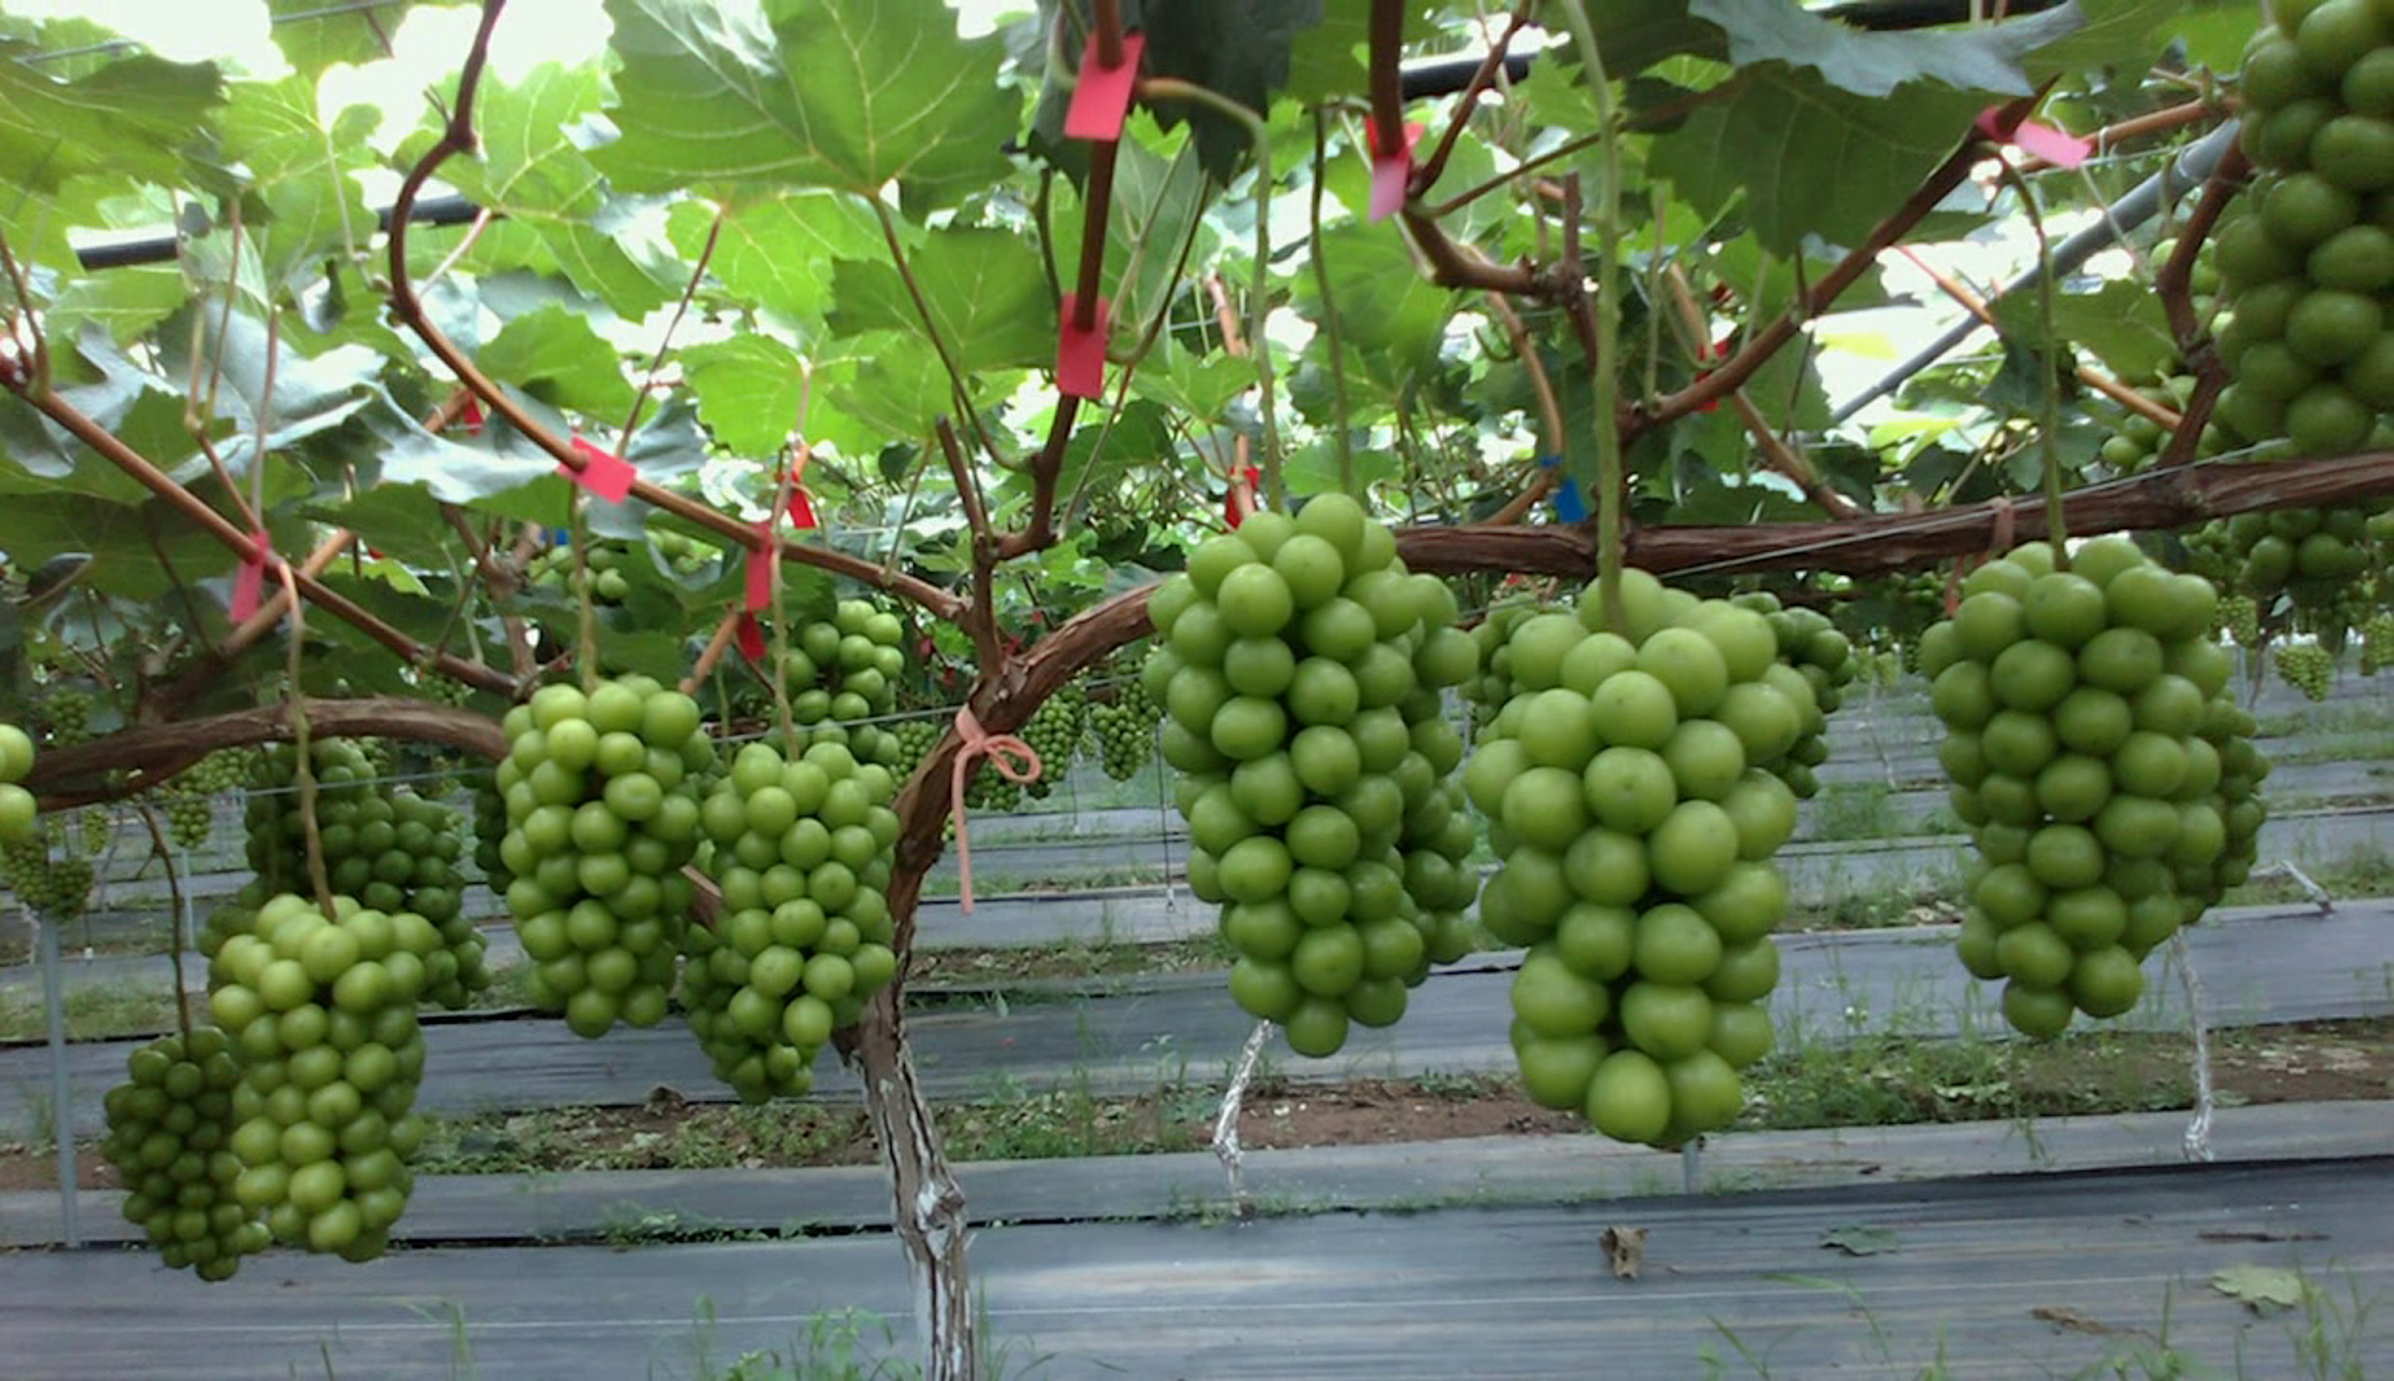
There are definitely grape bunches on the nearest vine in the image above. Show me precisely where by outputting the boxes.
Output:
[2206,2,2390,462]
[1141,493,1477,1057]
[1916,537,2229,1040]
[1464,568,1815,1149]
[209,894,432,1264]
[700,740,902,1049]
[493,673,712,1040]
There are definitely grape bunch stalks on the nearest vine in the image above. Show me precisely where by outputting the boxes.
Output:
[2001,165,2072,573]
[769,545,800,763]
[1134,77,1285,518]
[570,529,597,698]
[1560,2,1627,639]
[278,564,338,925]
